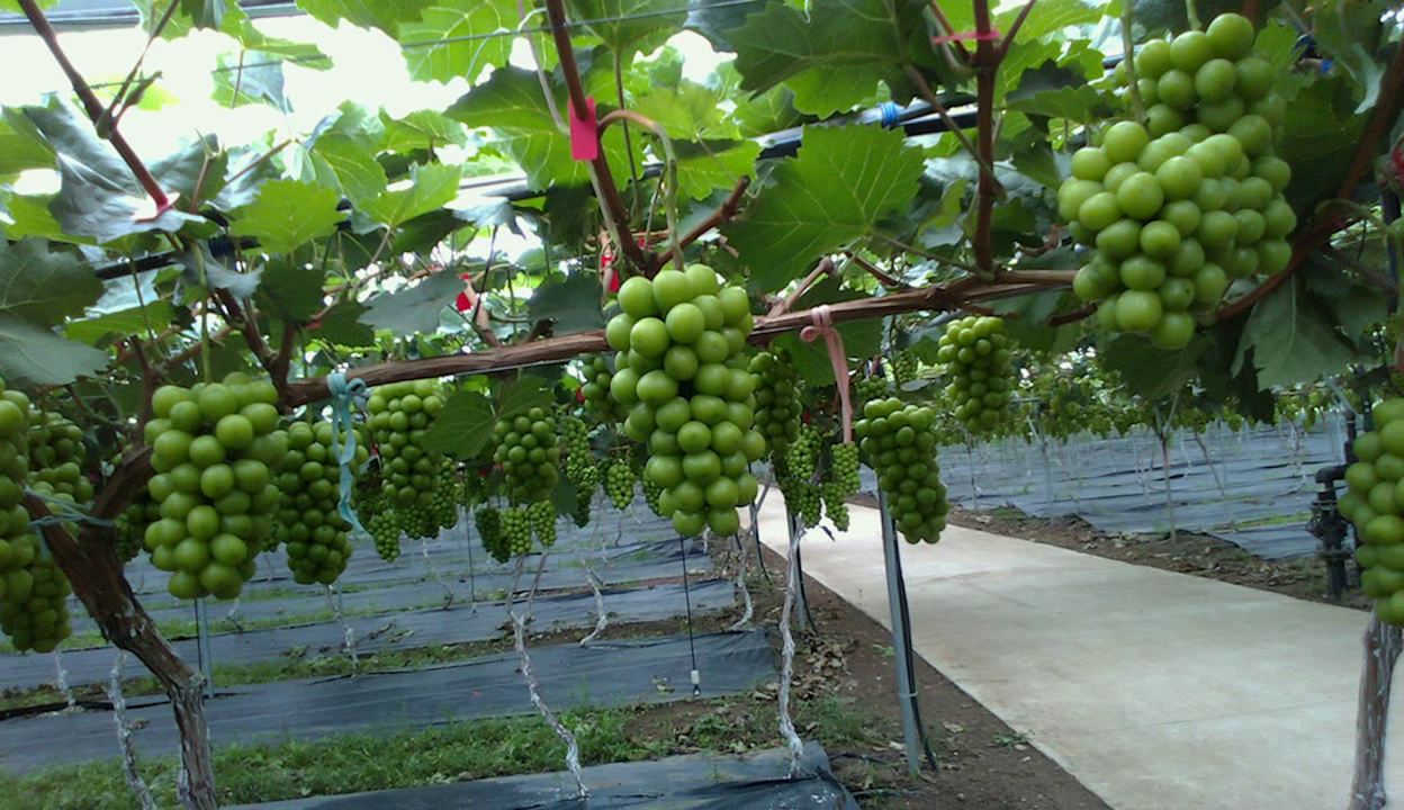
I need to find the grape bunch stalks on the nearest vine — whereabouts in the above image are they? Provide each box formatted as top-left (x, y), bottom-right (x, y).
top-left (600, 110), bottom-right (685, 271)
top-left (1120, 1), bottom-right (1150, 129)
top-left (182, 240), bottom-right (211, 384)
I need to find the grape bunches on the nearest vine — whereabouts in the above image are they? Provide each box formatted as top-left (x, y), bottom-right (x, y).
top-left (143, 371), bottom-right (290, 600)
top-left (1114, 13), bottom-right (1299, 279)
top-left (1056, 121), bottom-right (1244, 350)
top-left (604, 263), bottom-right (765, 538)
